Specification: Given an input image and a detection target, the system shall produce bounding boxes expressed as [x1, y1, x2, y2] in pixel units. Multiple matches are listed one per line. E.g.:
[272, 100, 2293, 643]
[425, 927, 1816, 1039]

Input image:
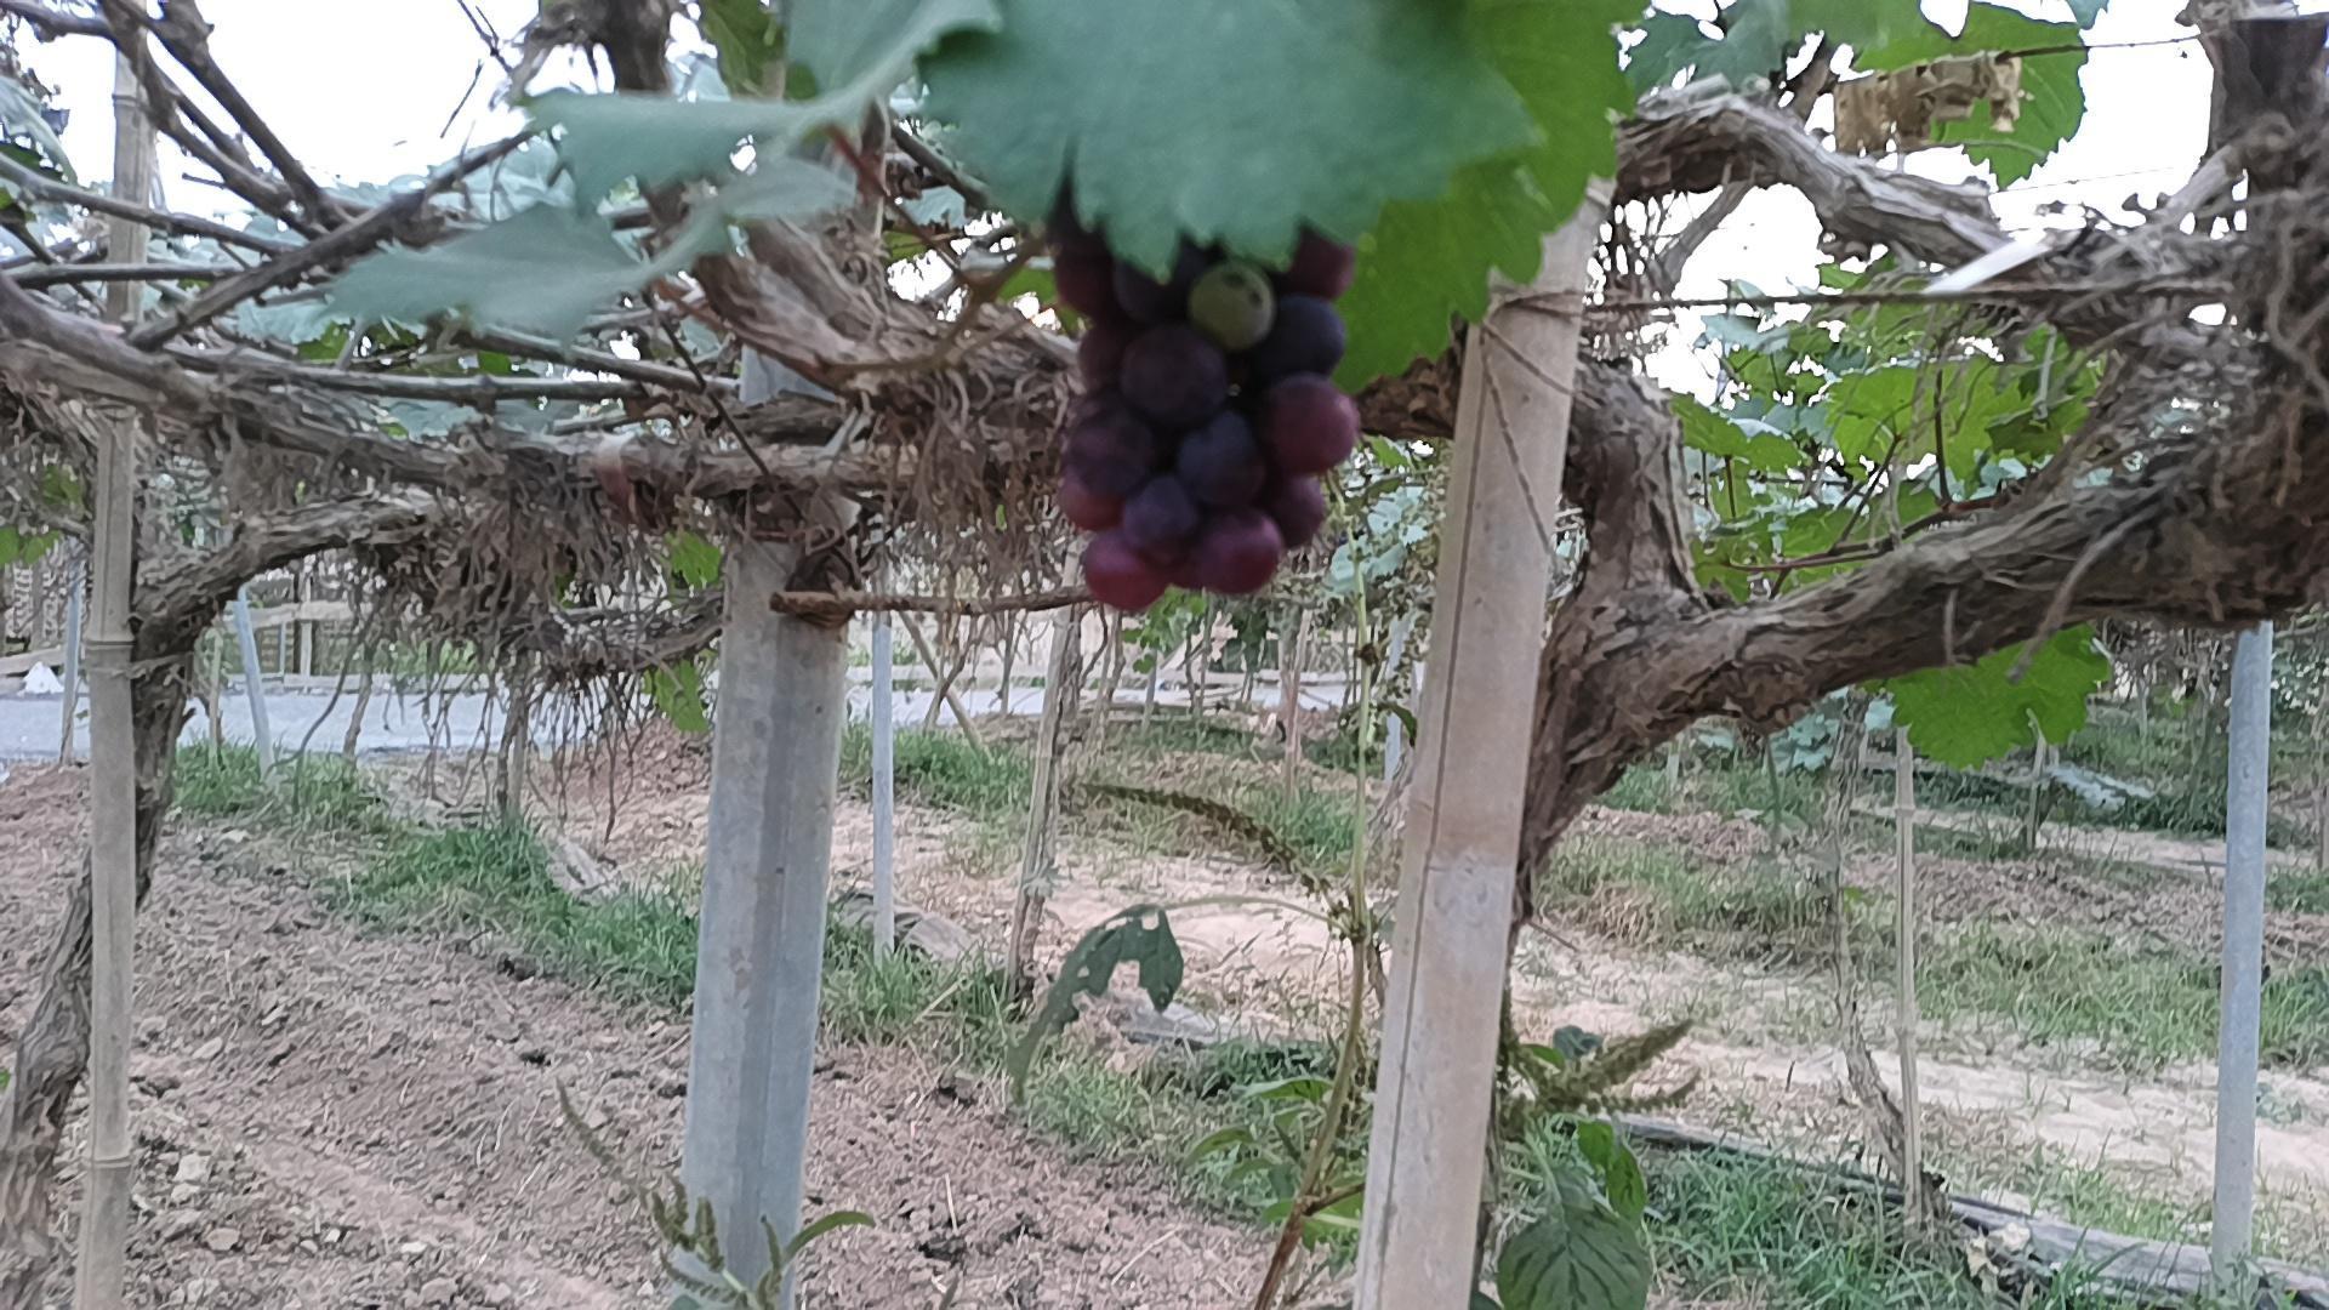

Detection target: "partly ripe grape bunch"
[1049, 195, 1359, 611]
